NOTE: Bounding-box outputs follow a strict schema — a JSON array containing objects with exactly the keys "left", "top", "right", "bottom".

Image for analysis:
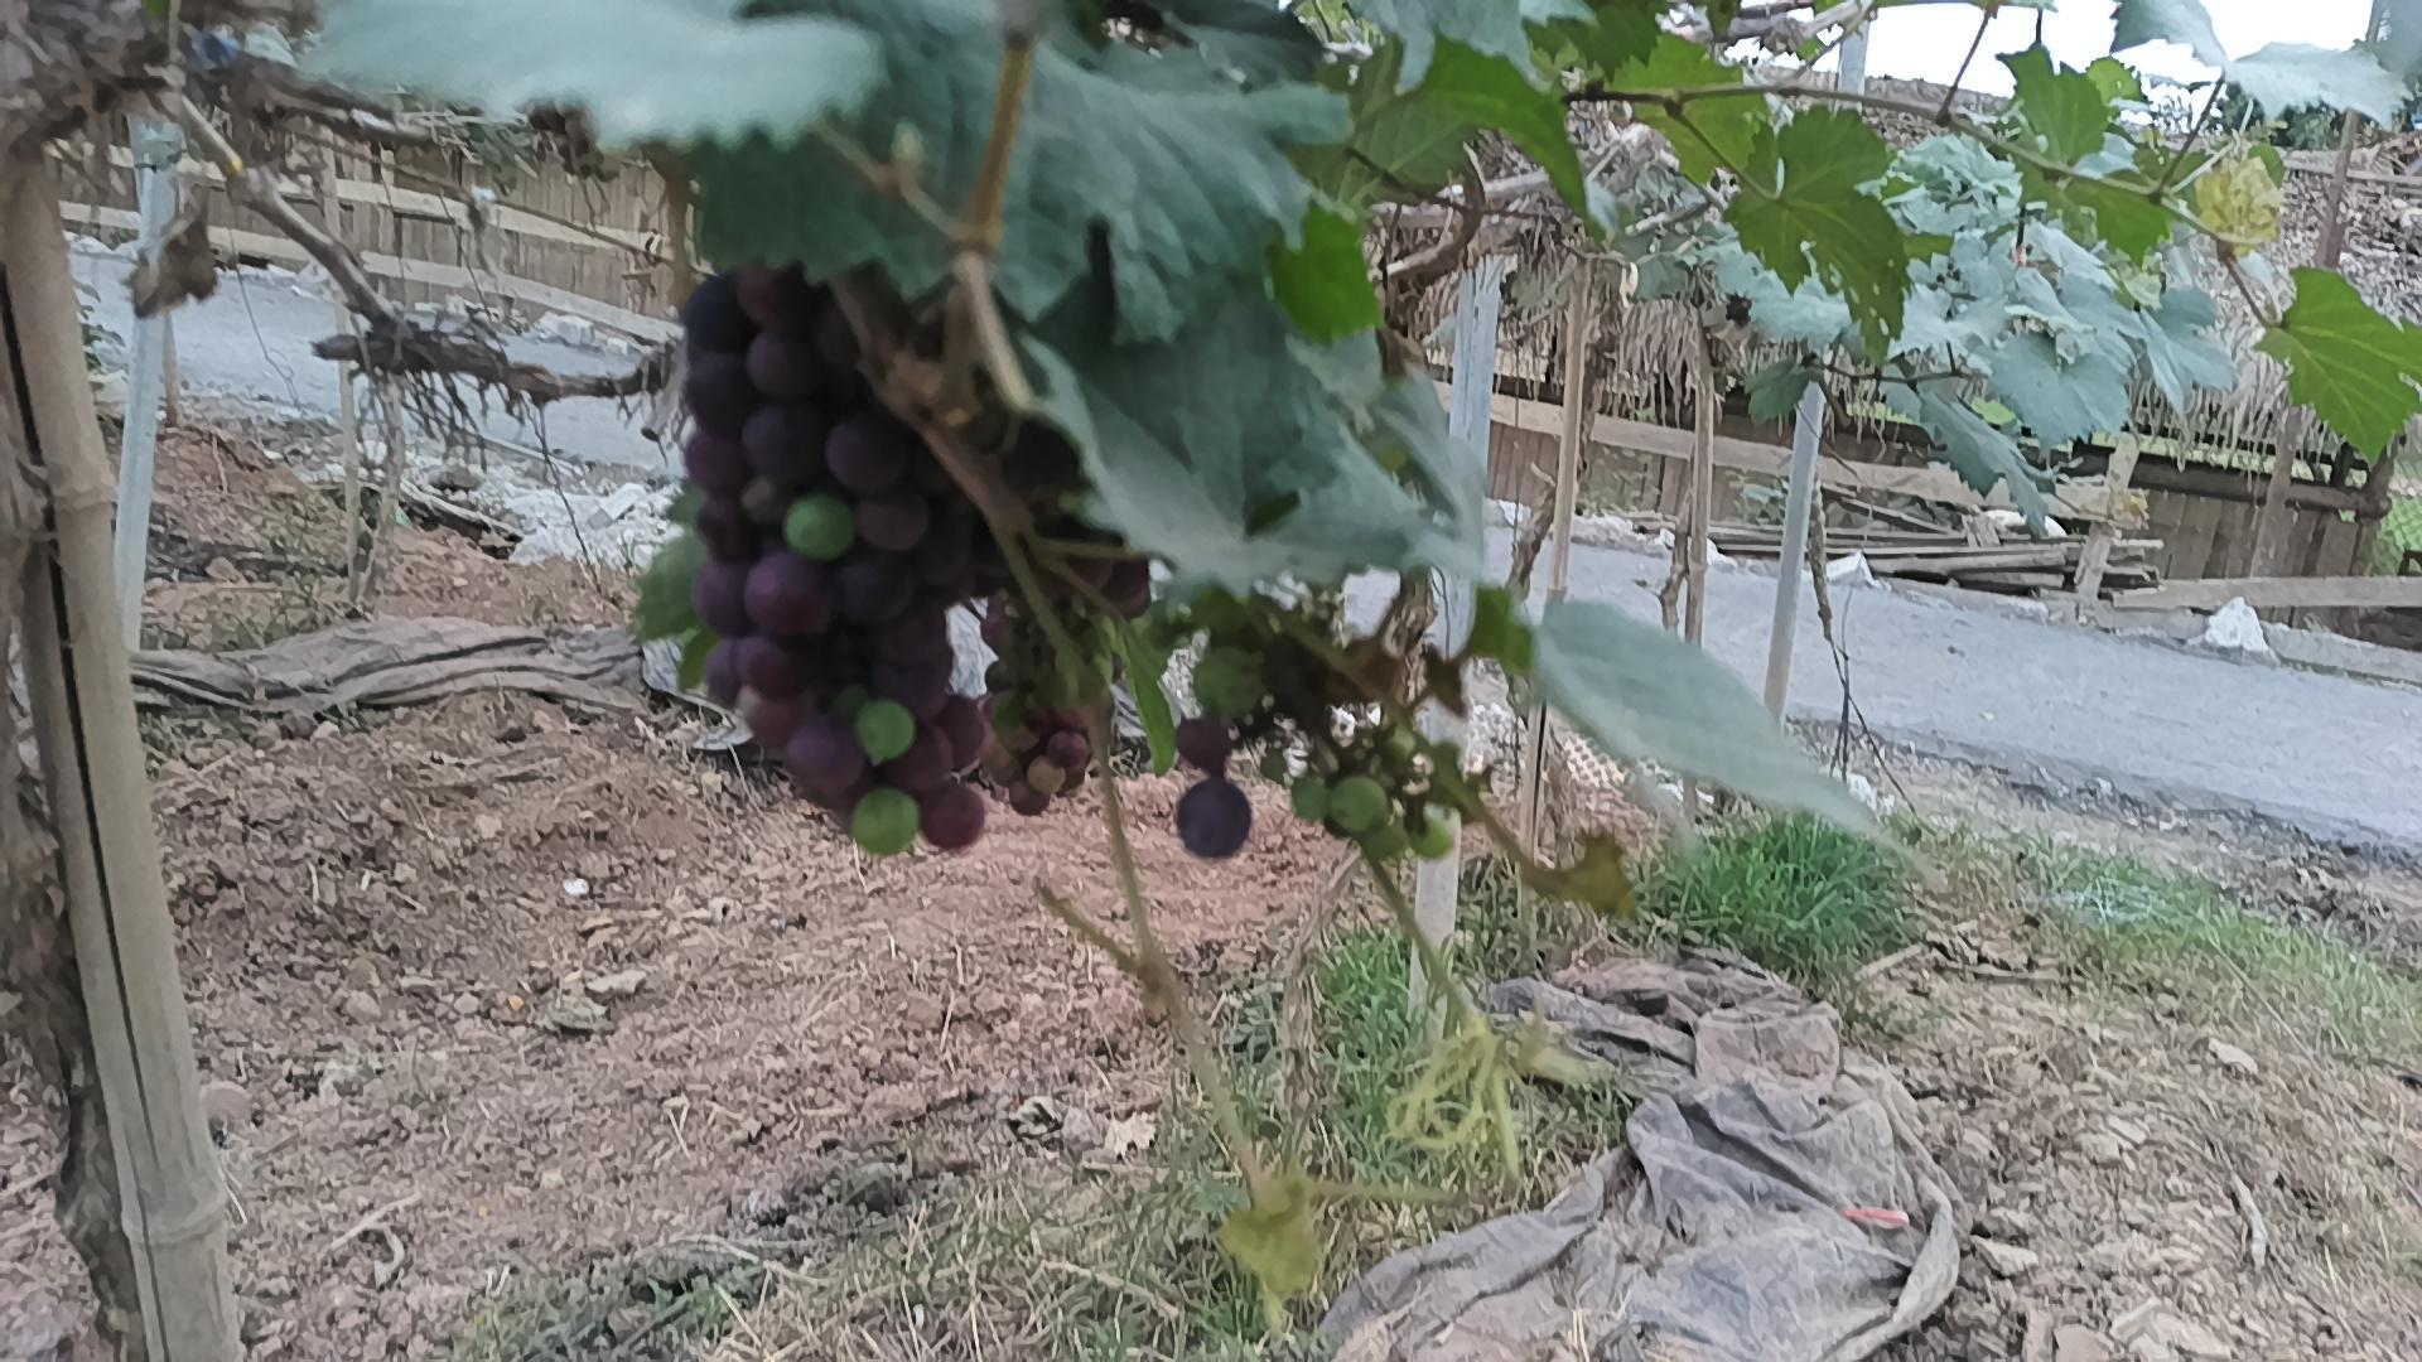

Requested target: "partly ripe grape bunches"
[
  {"left": 981, "top": 594, "right": 1094, "bottom": 813},
  {"left": 681, "top": 266, "right": 1147, "bottom": 854},
  {"left": 1176, "top": 637, "right": 1458, "bottom": 861}
]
